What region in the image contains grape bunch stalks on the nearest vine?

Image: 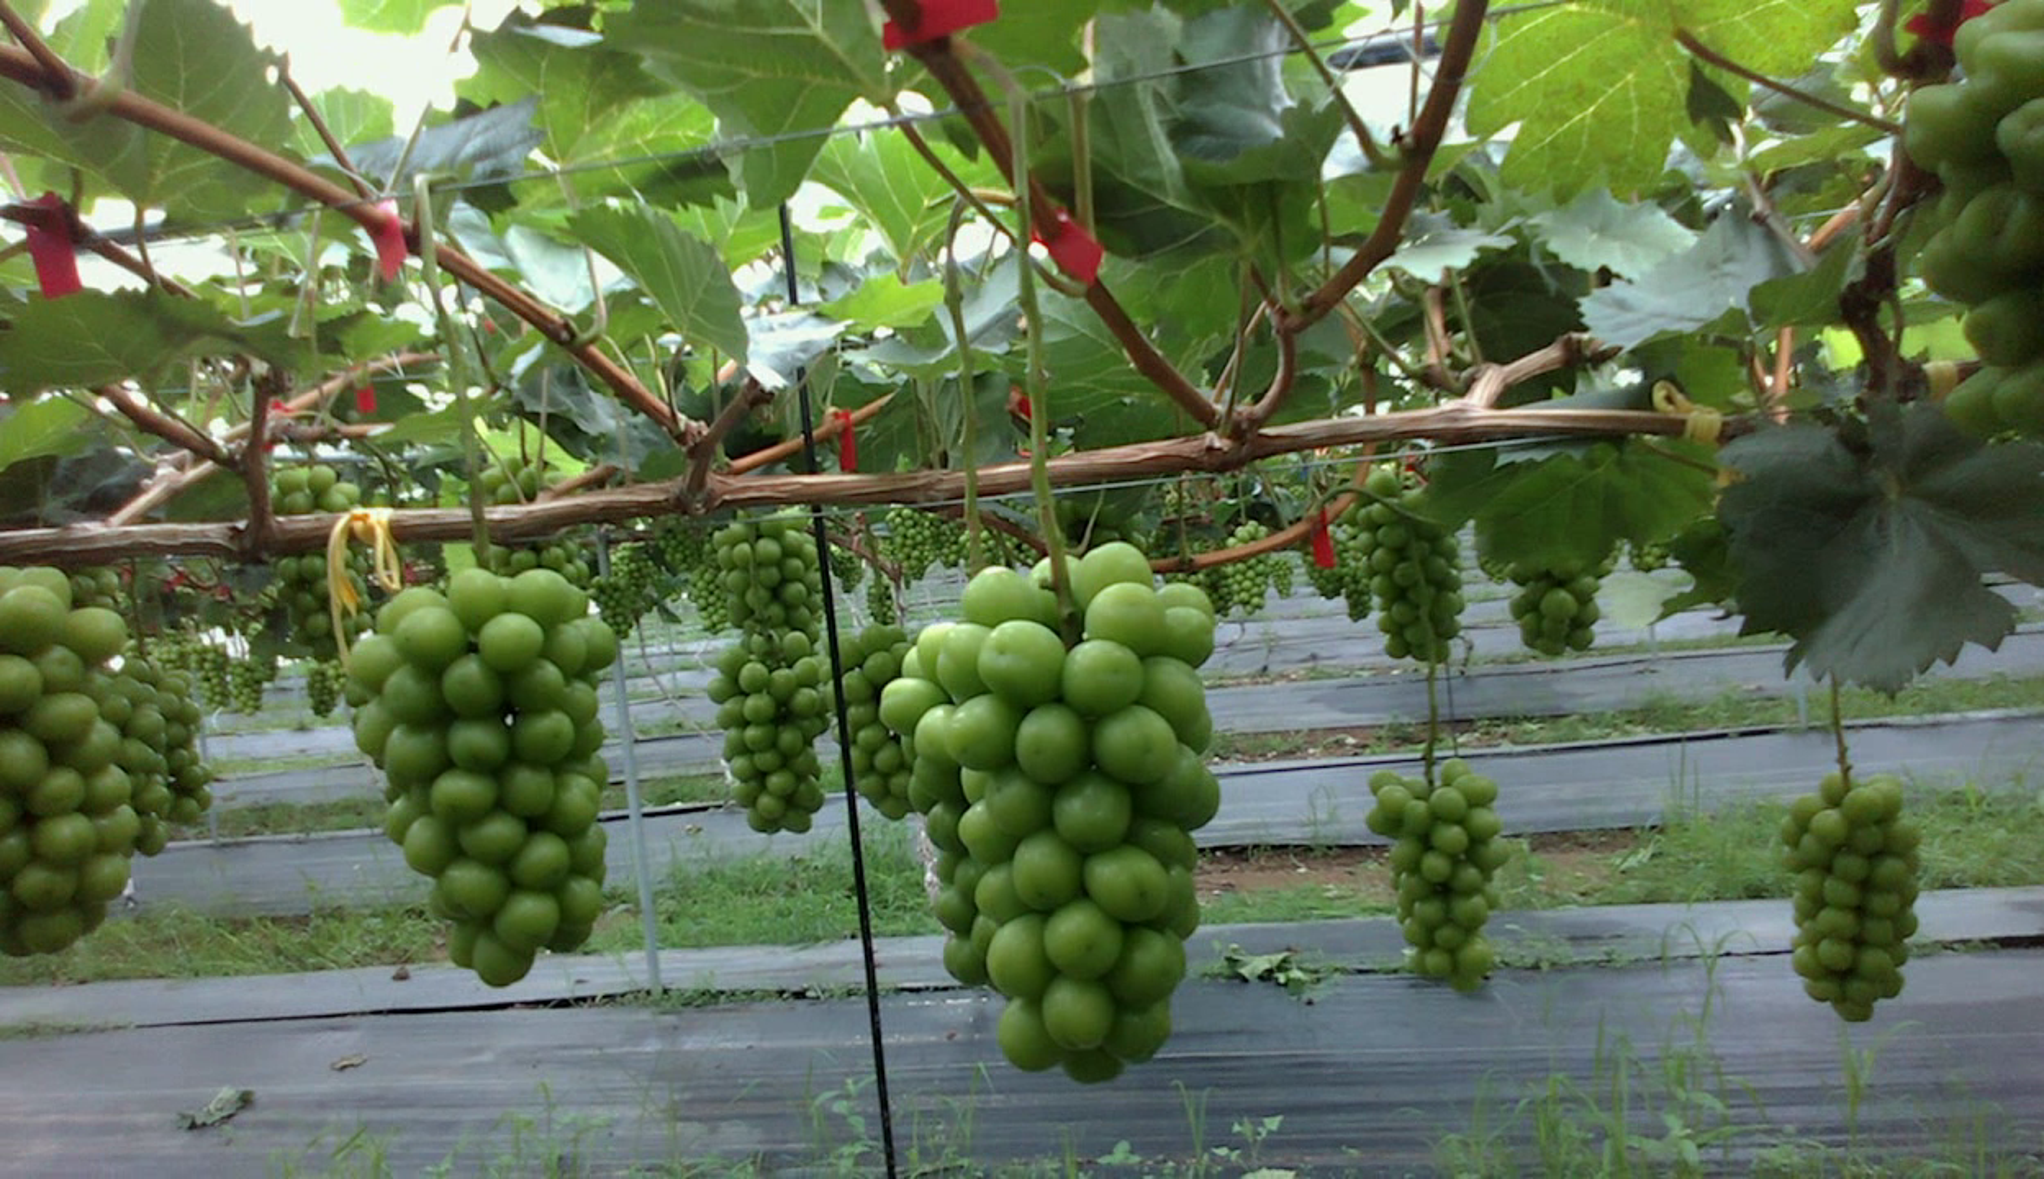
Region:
[952,36,1081,647]
[942,193,984,583]
[411,172,488,567]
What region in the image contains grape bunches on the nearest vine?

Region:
[1898,0,2042,442]
[878,537,1223,1086]
[342,568,619,989]
[0,565,138,961]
